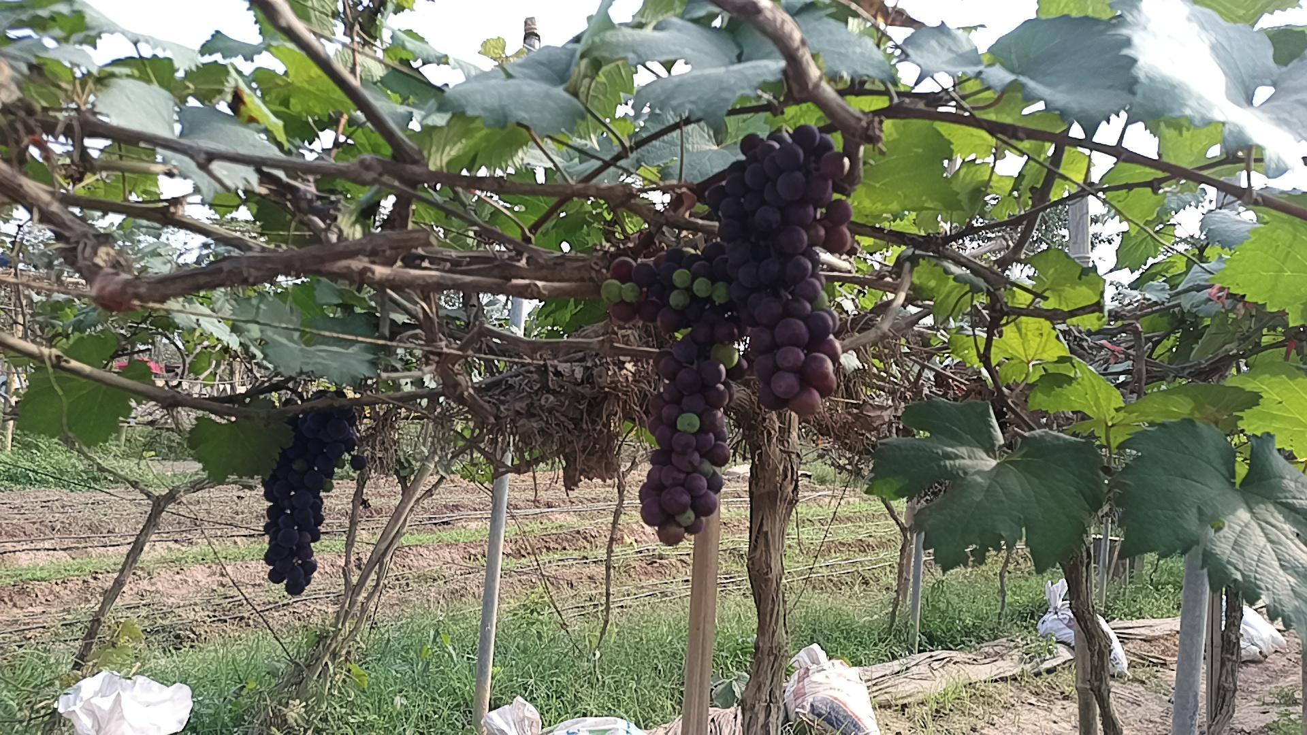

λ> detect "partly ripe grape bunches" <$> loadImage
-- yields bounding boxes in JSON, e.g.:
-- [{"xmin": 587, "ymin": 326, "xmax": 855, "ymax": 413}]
[
  {"xmin": 599, "ymin": 243, "xmax": 748, "ymax": 544},
  {"xmin": 262, "ymin": 389, "xmax": 366, "ymax": 595},
  {"xmin": 706, "ymin": 125, "xmax": 852, "ymax": 415}
]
